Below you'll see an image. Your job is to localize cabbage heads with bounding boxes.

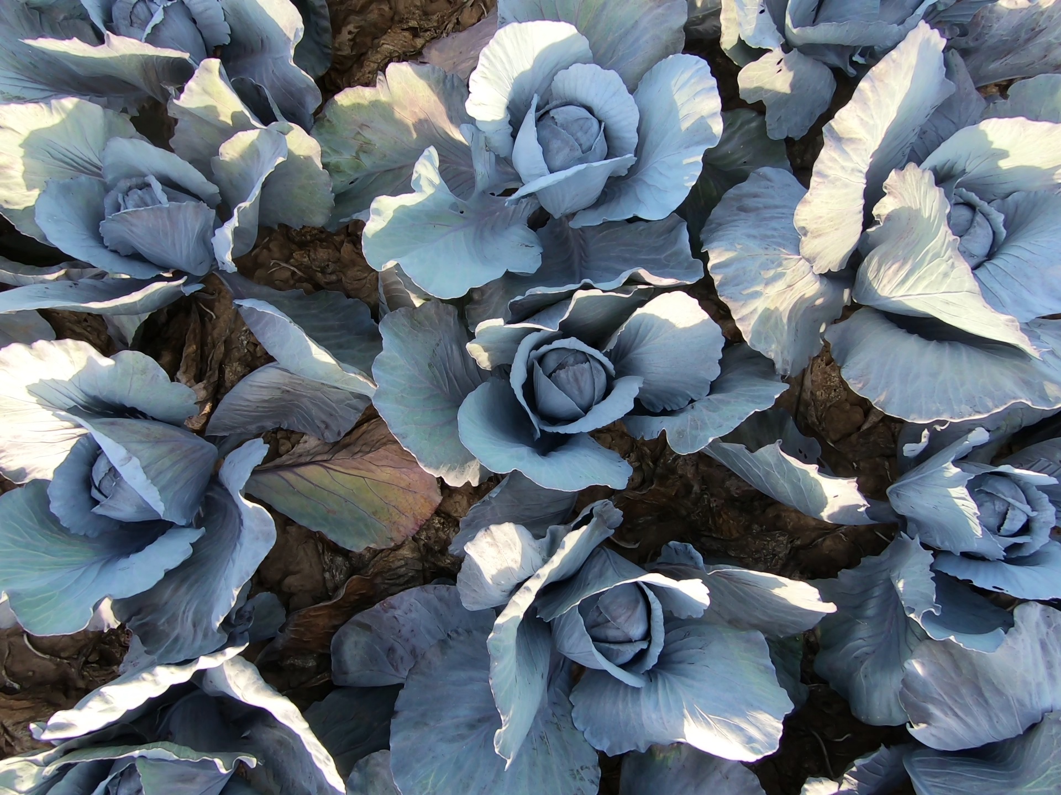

[906,195,990,278]
[113,2,202,65]
[116,185,206,259]
[928,464,1032,538]
[92,450,188,521]
[538,343,606,415]
[816,2,927,51]
[529,105,606,197]
[109,743,222,793]
[560,572,654,667]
